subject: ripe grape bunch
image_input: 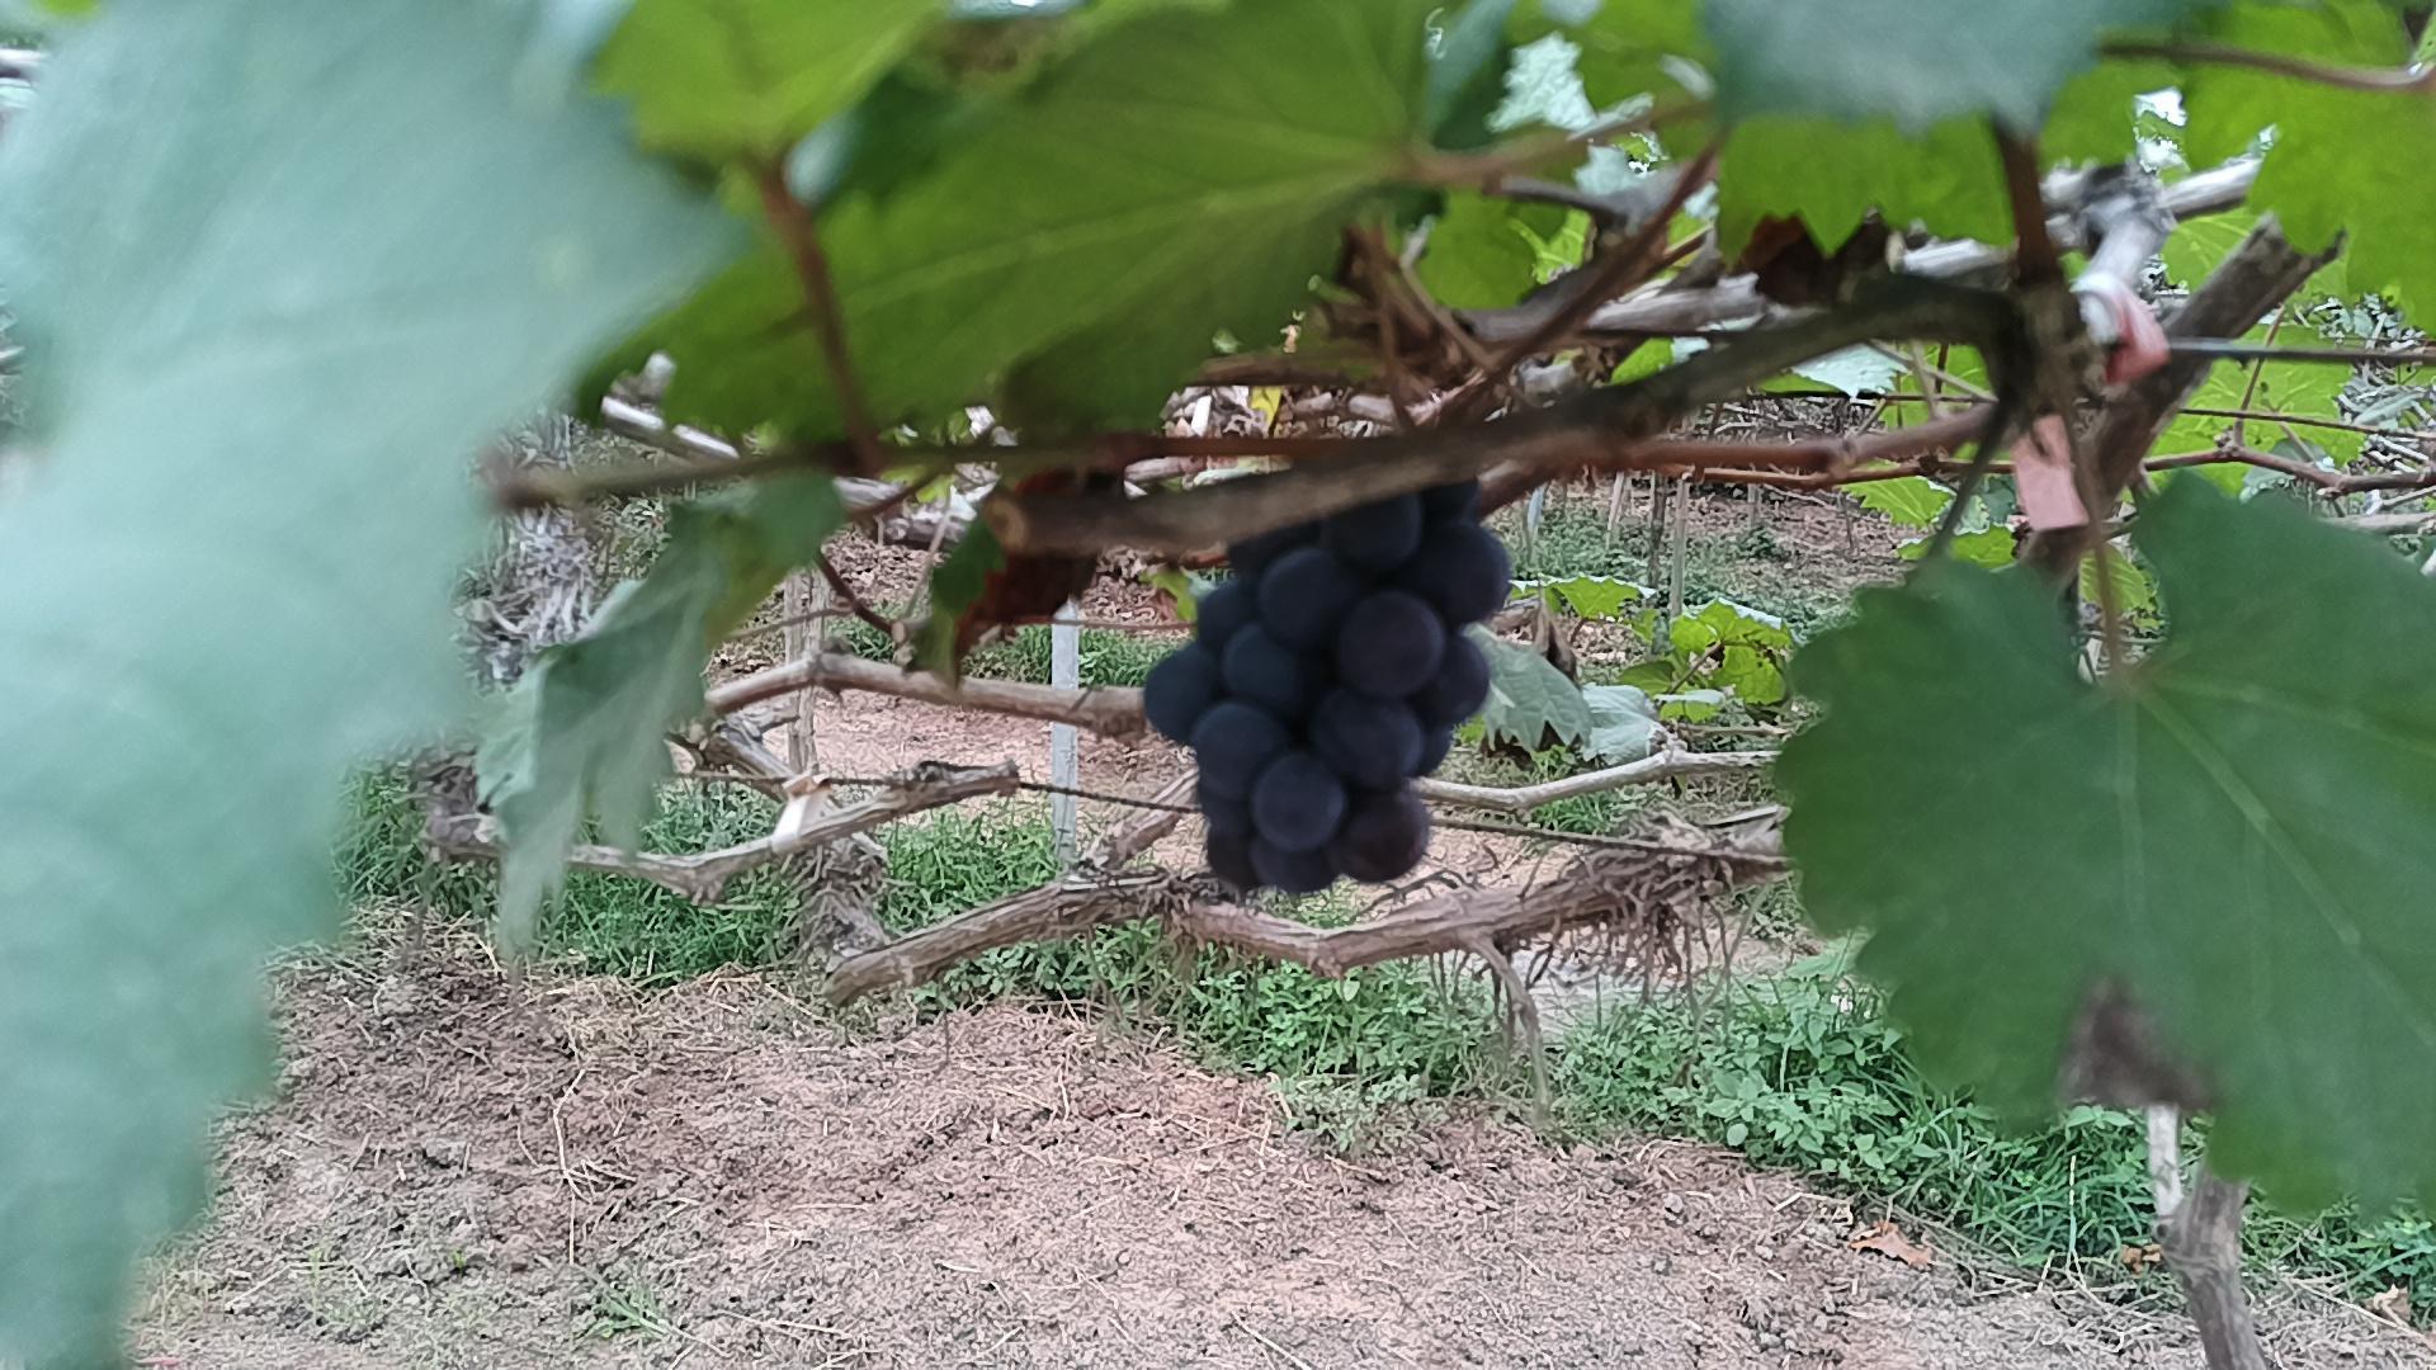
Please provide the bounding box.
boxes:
[1144,480,1511,893]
